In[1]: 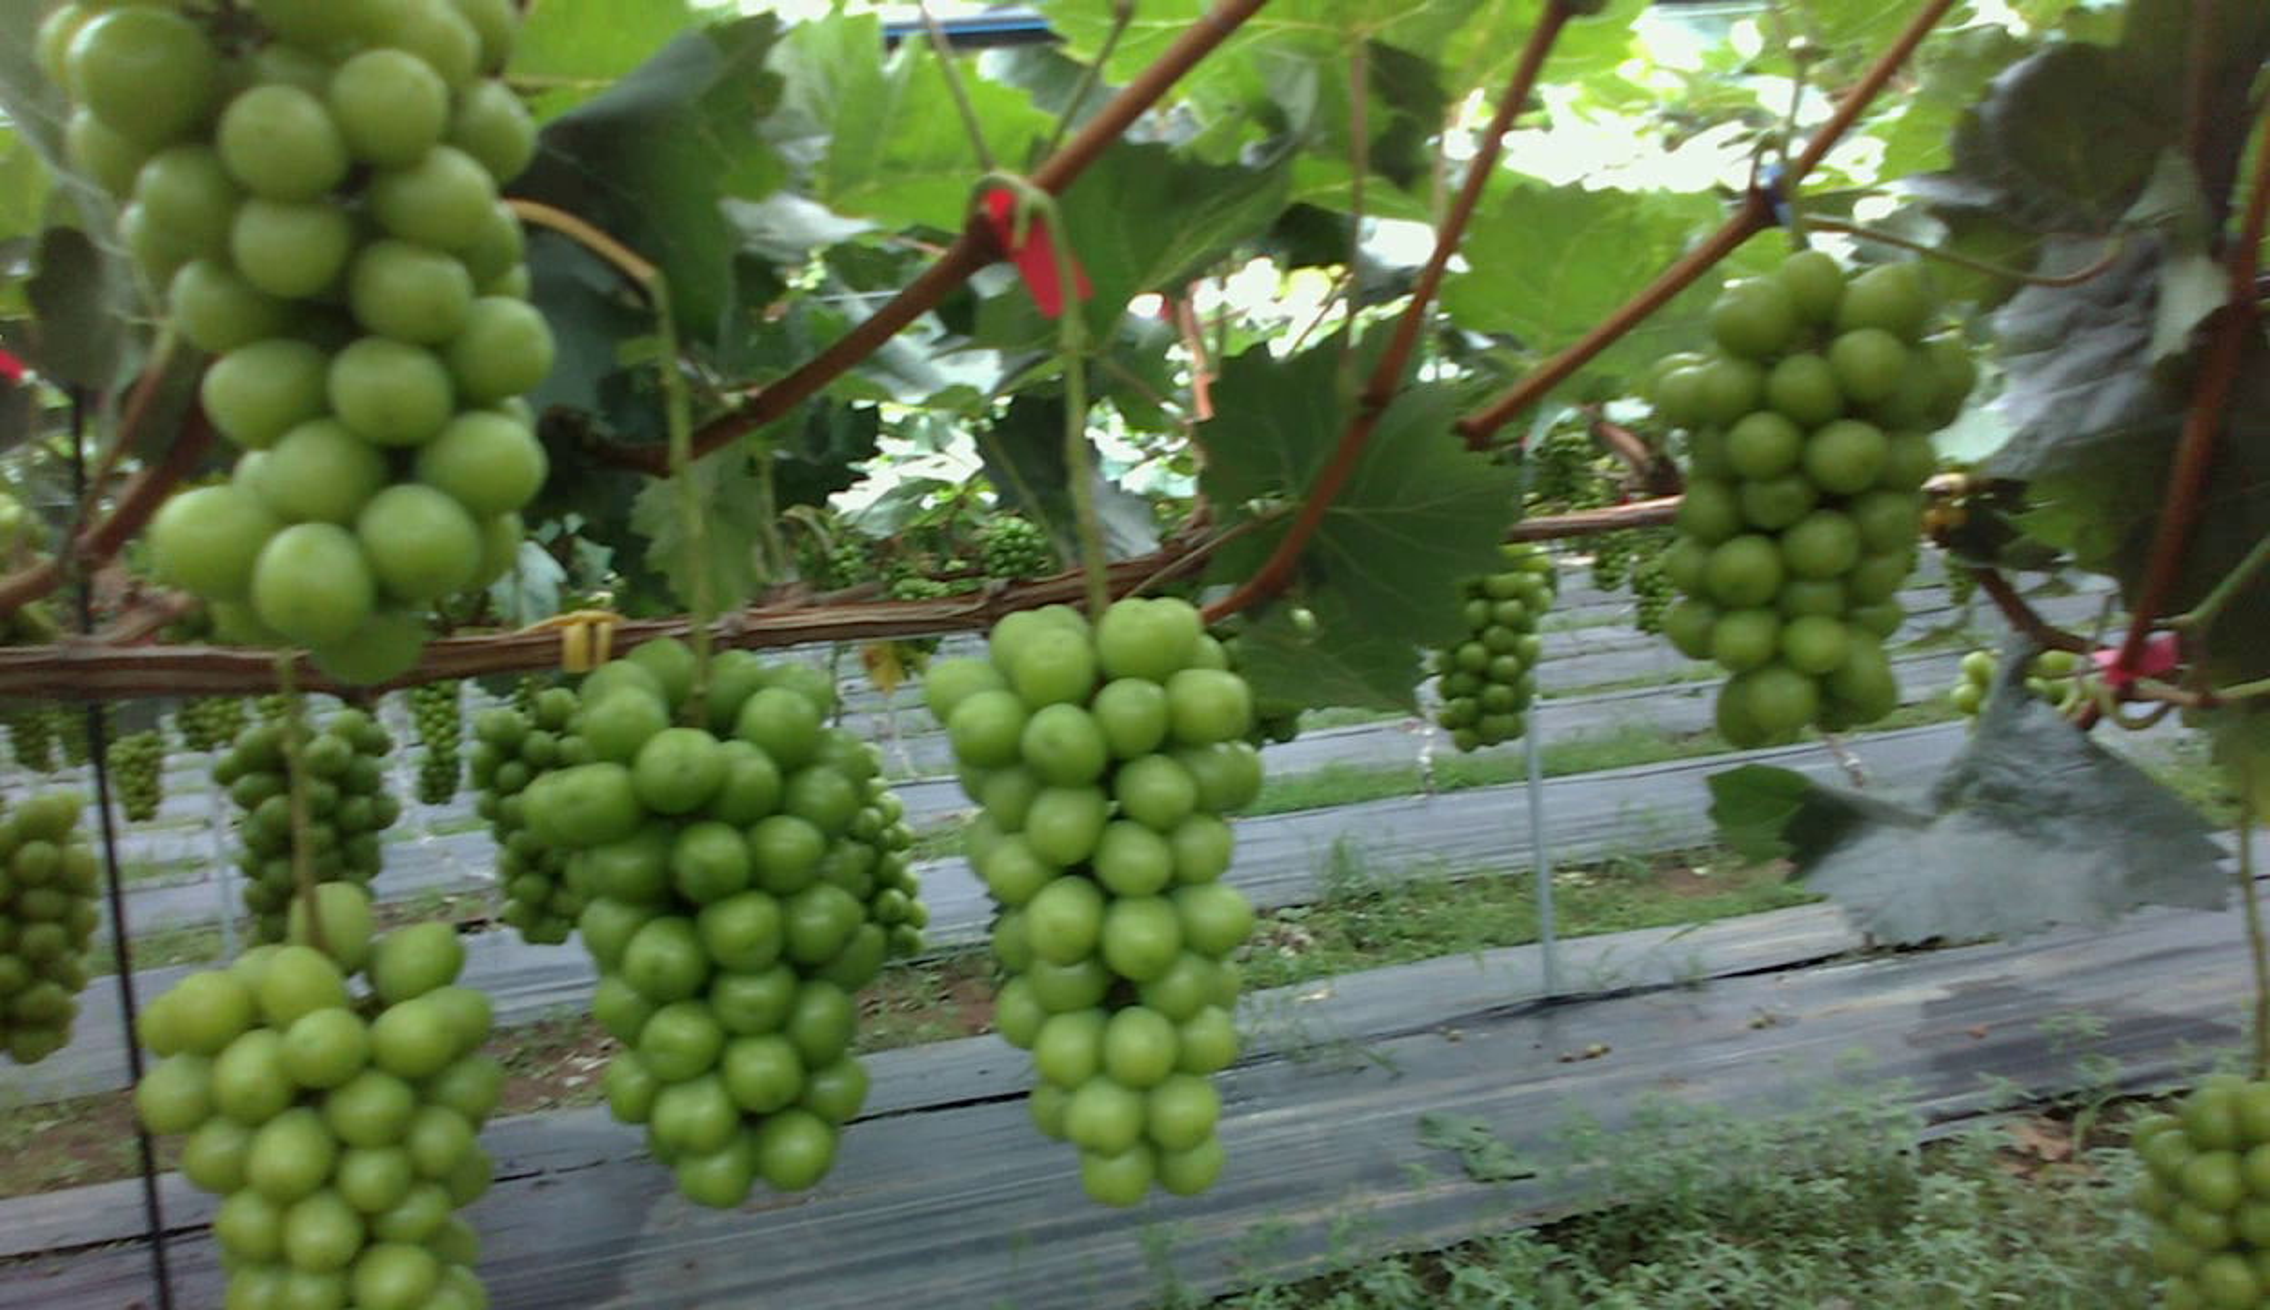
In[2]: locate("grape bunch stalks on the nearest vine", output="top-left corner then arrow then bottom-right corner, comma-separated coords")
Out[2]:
960,169 -> 1108,622
507,200 -> 708,726
271,644 -> 326,944
1746,127 -> 1804,249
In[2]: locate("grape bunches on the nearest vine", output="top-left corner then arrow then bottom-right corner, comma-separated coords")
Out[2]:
31,0 -> 551,688
1648,251 -> 1972,746
924,597 -> 1261,1204
526,637 -> 884,1204
131,884 -> 502,1308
